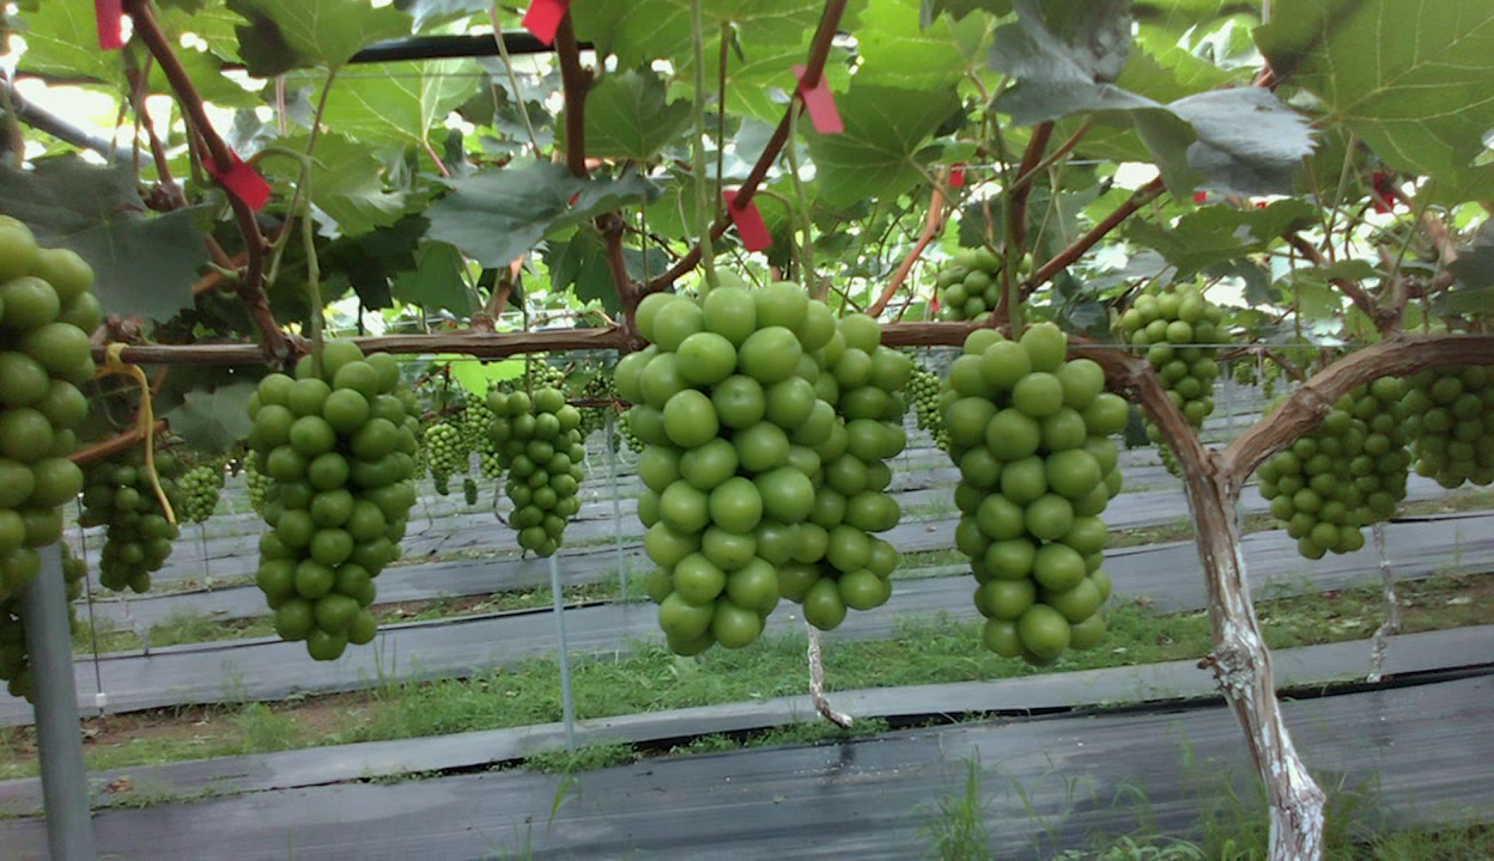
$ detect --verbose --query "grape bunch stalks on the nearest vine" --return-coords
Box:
[787,93,819,298]
[245,147,322,379]
[688,2,717,288]
[982,103,1022,342]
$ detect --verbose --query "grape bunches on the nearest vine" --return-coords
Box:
[942,323,1129,665]
[249,340,421,659]
[615,276,849,658]
[777,311,910,631]
[1,212,101,597]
